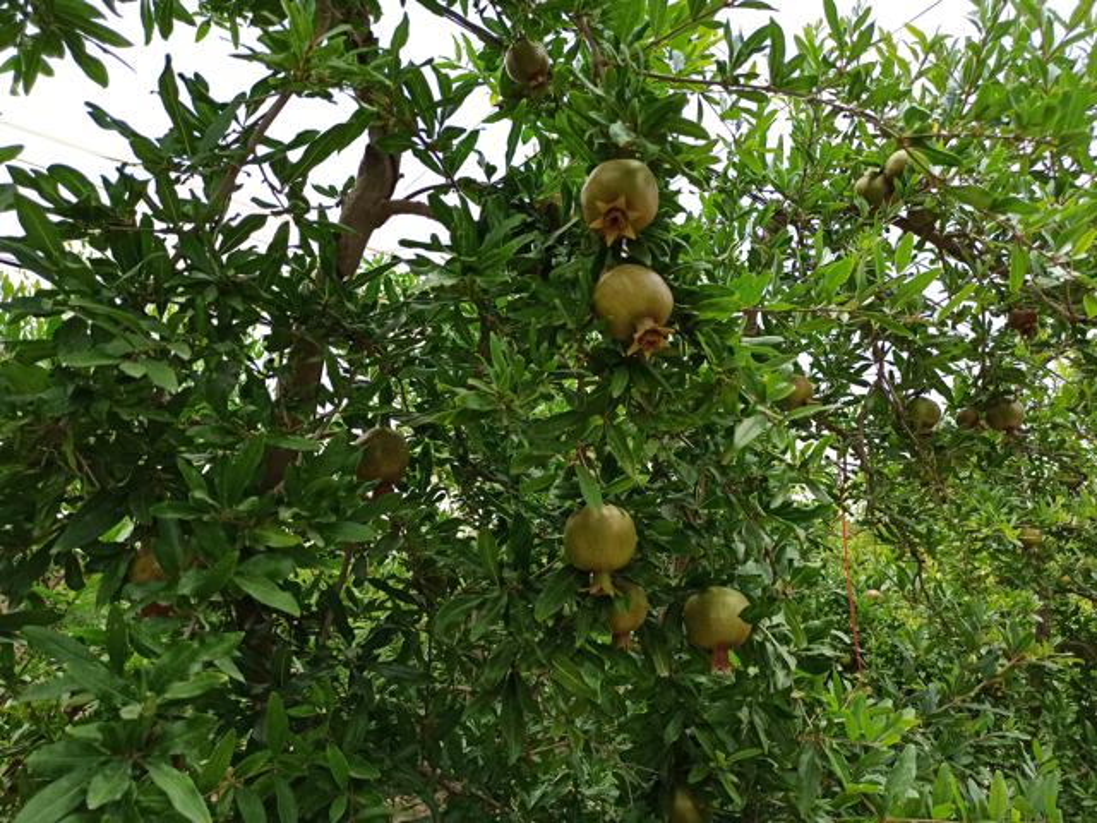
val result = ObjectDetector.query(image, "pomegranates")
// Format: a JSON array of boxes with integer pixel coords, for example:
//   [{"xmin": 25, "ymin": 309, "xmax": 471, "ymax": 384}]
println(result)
[
  {"xmin": 986, "ymin": 399, "xmax": 1023, "ymax": 437},
  {"xmin": 562, "ymin": 502, "xmax": 639, "ymax": 598},
  {"xmin": 357, "ymin": 427, "xmax": 410, "ymax": 497},
  {"xmin": 504, "ymin": 36, "xmax": 550, "ymax": 91},
  {"xmin": 581, "ymin": 158, "xmax": 660, "ymax": 247},
  {"xmin": 782, "ymin": 374, "xmax": 816, "ymax": 408},
  {"xmin": 1008, "ymin": 309, "xmax": 1039, "ymax": 338},
  {"xmin": 127, "ymin": 547, "xmax": 165, "ymax": 583},
  {"xmin": 670, "ymin": 790, "xmax": 703, "ymax": 823},
  {"xmin": 854, "ymin": 175, "xmax": 893, "ymax": 207},
  {"xmin": 612, "ymin": 580, "xmax": 648, "ymax": 650},
  {"xmin": 955, "ymin": 408, "xmax": 986, "ymax": 430},
  {"xmin": 591, "ymin": 262, "xmax": 679, "ymax": 360},
  {"xmin": 1016, "ymin": 528, "xmax": 1044, "ymax": 556},
  {"xmin": 907, "ymin": 396, "xmax": 941, "ymax": 439},
  {"xmin": 682, "ymin": 585, "xmax": 752, "ymax": 674},
  {"xmin": 883, "ymin": 149, "xmax": 908, "ymax": 187}
]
